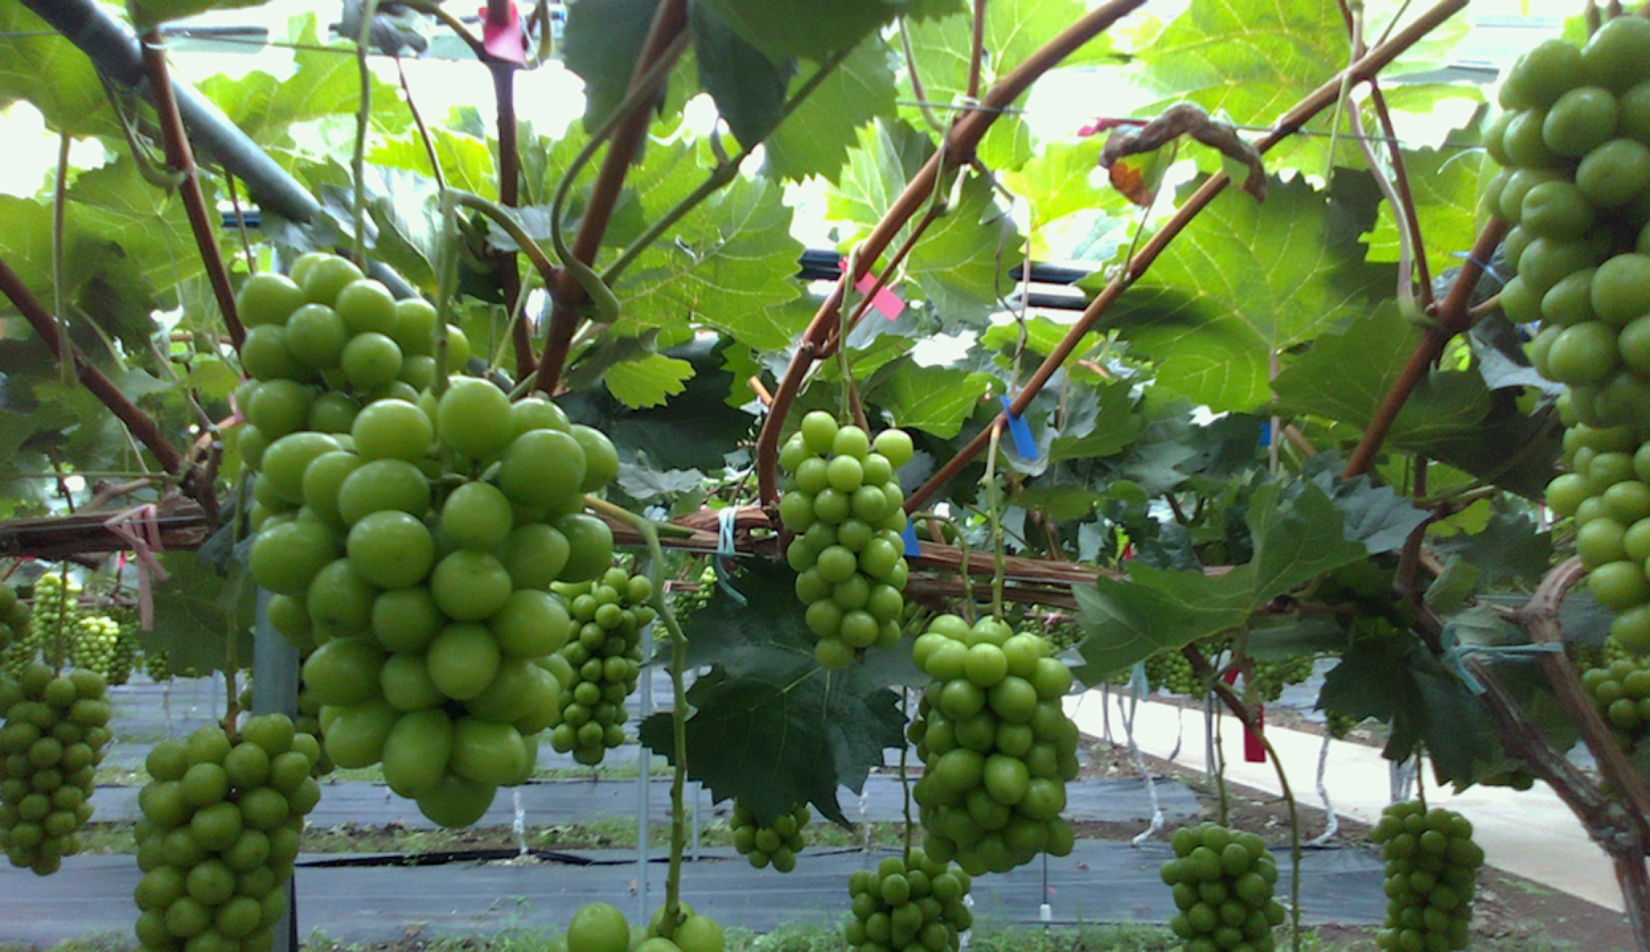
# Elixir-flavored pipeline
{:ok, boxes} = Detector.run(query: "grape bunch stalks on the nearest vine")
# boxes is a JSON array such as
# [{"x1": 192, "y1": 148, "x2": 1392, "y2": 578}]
[
  {"x1": 980, "y1": 423, "x2": 1003, "y2": 620},
  {"x1": 435, "y1": 186, "x2": 553, "y2": 395},
  {"x1": 838, "y1": 242, "x2": 861, "y2": 427},
  {"x1": 221, "y1": 464, "x2": 249, "y2": 739}
]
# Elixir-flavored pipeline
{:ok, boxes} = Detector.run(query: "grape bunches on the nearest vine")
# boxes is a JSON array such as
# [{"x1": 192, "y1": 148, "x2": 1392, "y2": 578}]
[
  {"x1": 910, "y1": 617, "x2": 1079, "y2": 874},
  {"x1": 131, "y1": 713, "x2": 321, "y2": 949},
  {"x1": 253, "y1": 379, "x2": 617, "y2": 826},
  {"x1": 230, "y1": 250, "x2": 435, "y2": 464},
  {"x1": 780, "y1": 413, "x2": 911, "y2": 669},
  {"x1": 1546, "y1": 398, "x2": 1649, "y2": 654},
  {"x1": 1486, "y1": 15, "x2": 1649, "y2": 427}
]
